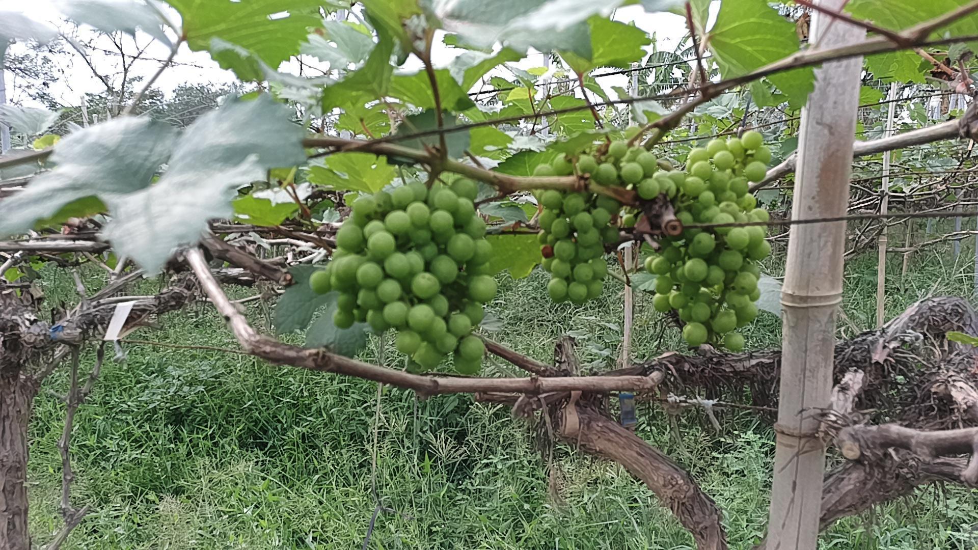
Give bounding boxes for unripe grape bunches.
[533,141,657,304]
[310,180,497,373]
[645,131,770,350]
